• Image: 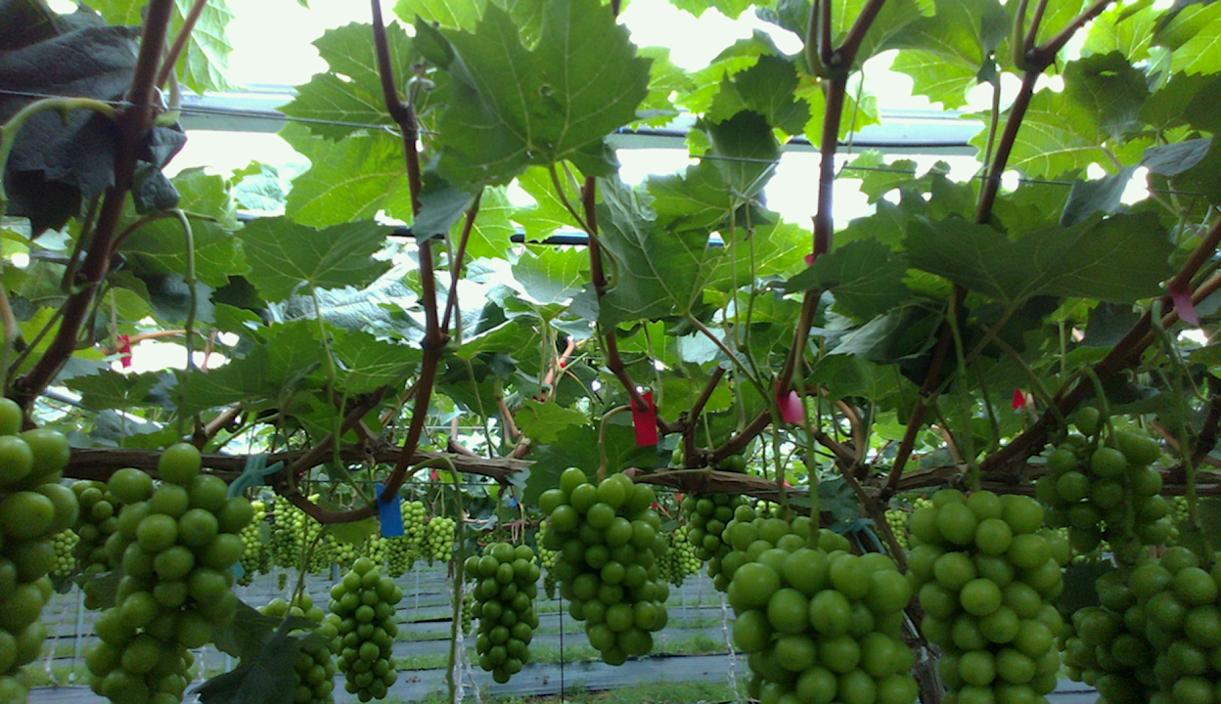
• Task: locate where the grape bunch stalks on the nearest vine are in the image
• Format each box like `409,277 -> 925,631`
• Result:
1149,299 -> 1198,552
597,404 -> 632,485
113,209 -> 198,443
948,294 -> 981,493
789,289 -> 819,550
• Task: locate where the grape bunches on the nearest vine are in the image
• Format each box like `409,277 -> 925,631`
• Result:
538,466 -> 669,666
1128,547 -> 1220,703
0,397 -> 79,703
727,547 -> 919,703
84,442 -> 253,703
906,489 -> 1066,703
